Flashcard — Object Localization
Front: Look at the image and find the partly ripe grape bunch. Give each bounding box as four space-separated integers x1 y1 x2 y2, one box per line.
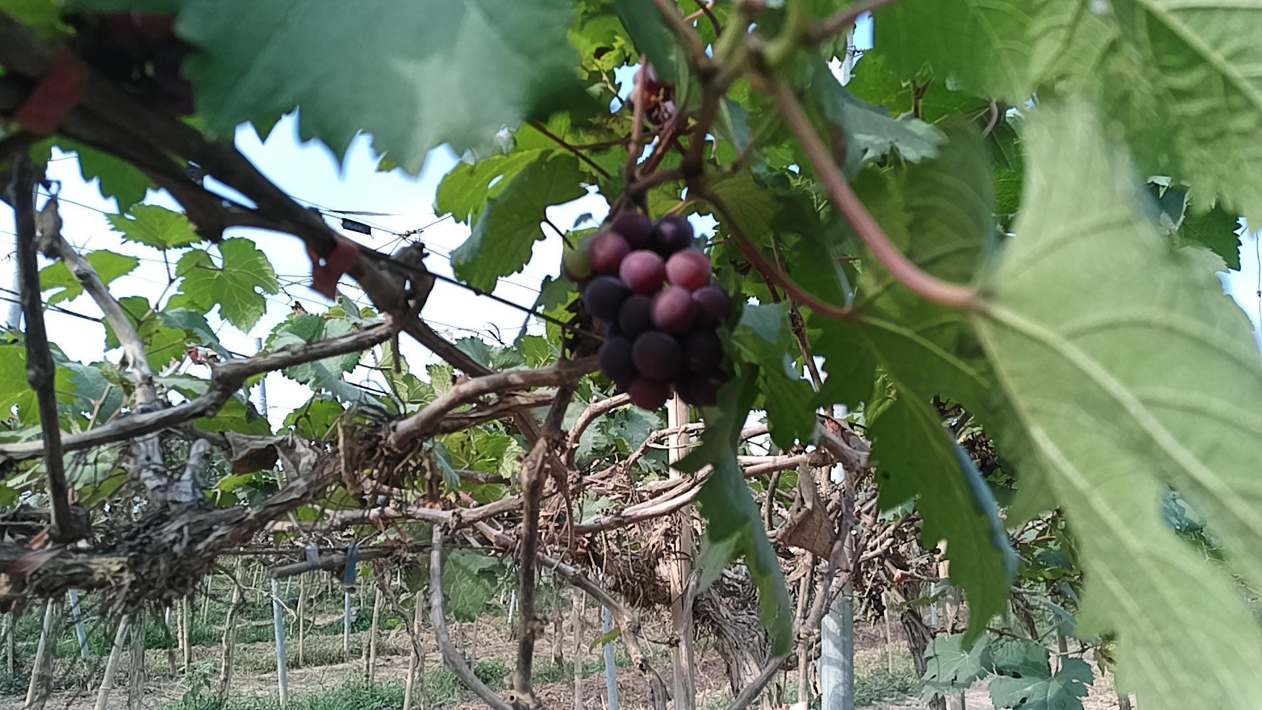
563 212 732 410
